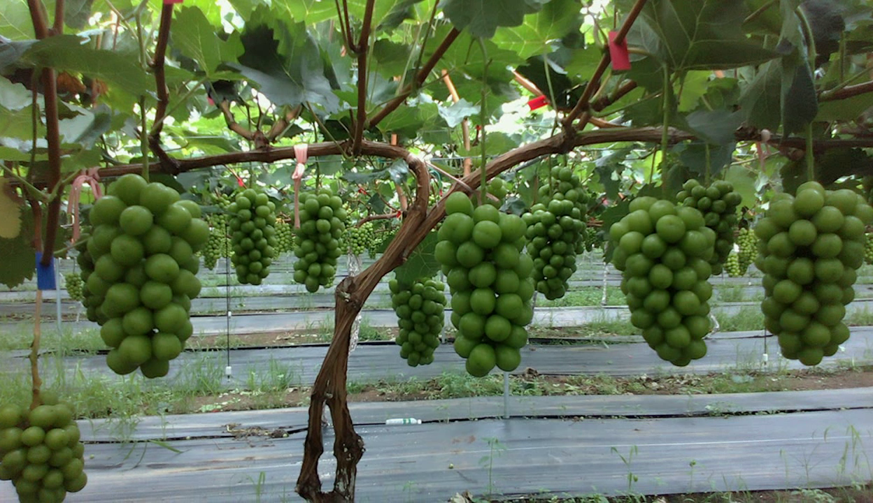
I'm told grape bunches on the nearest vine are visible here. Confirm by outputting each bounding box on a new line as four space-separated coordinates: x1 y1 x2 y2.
753 180 872 366
0 391 87 502
609 196 716 366
434 191 535 378
87 174 210 379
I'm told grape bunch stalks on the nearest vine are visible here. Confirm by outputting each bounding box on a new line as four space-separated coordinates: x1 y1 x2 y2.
29 290 41 409
804 123 814 180
477 38 493 203
138 96 149 182
627 48 669 199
